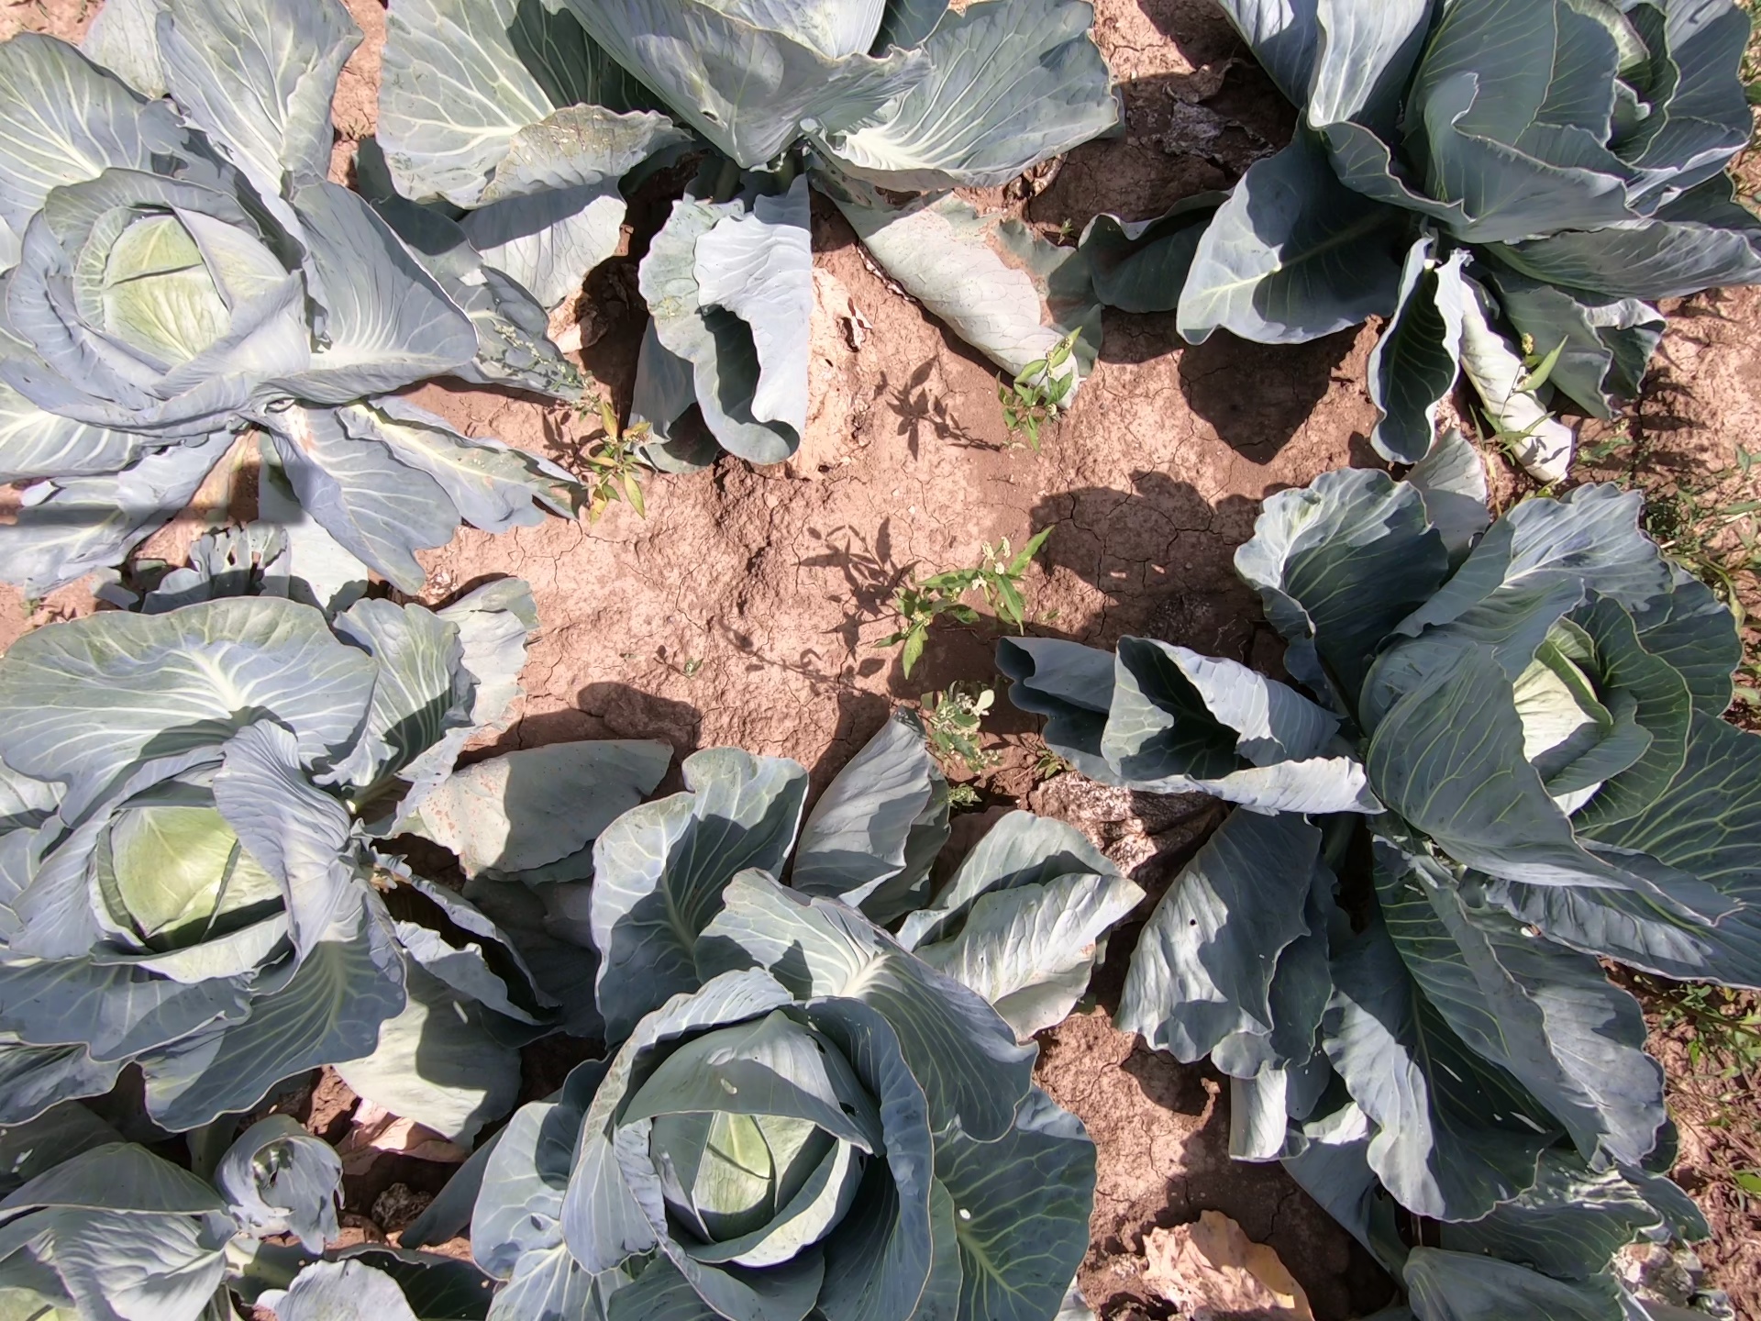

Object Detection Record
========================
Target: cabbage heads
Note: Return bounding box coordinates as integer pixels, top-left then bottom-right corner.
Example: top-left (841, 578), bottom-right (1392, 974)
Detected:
top-left (3, 1154), bottom-right (226, 1319)
top-left (81, 763), bottom-right (332, 973)
top-left (83, 216), bottom-right (288, 387)
top-left (641, 1041), bottom-right (846, 1249)
top-left (1406, 620), bottom-right (1613, 816)
top-left (1413, 3), bottom-right (1617, 174)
